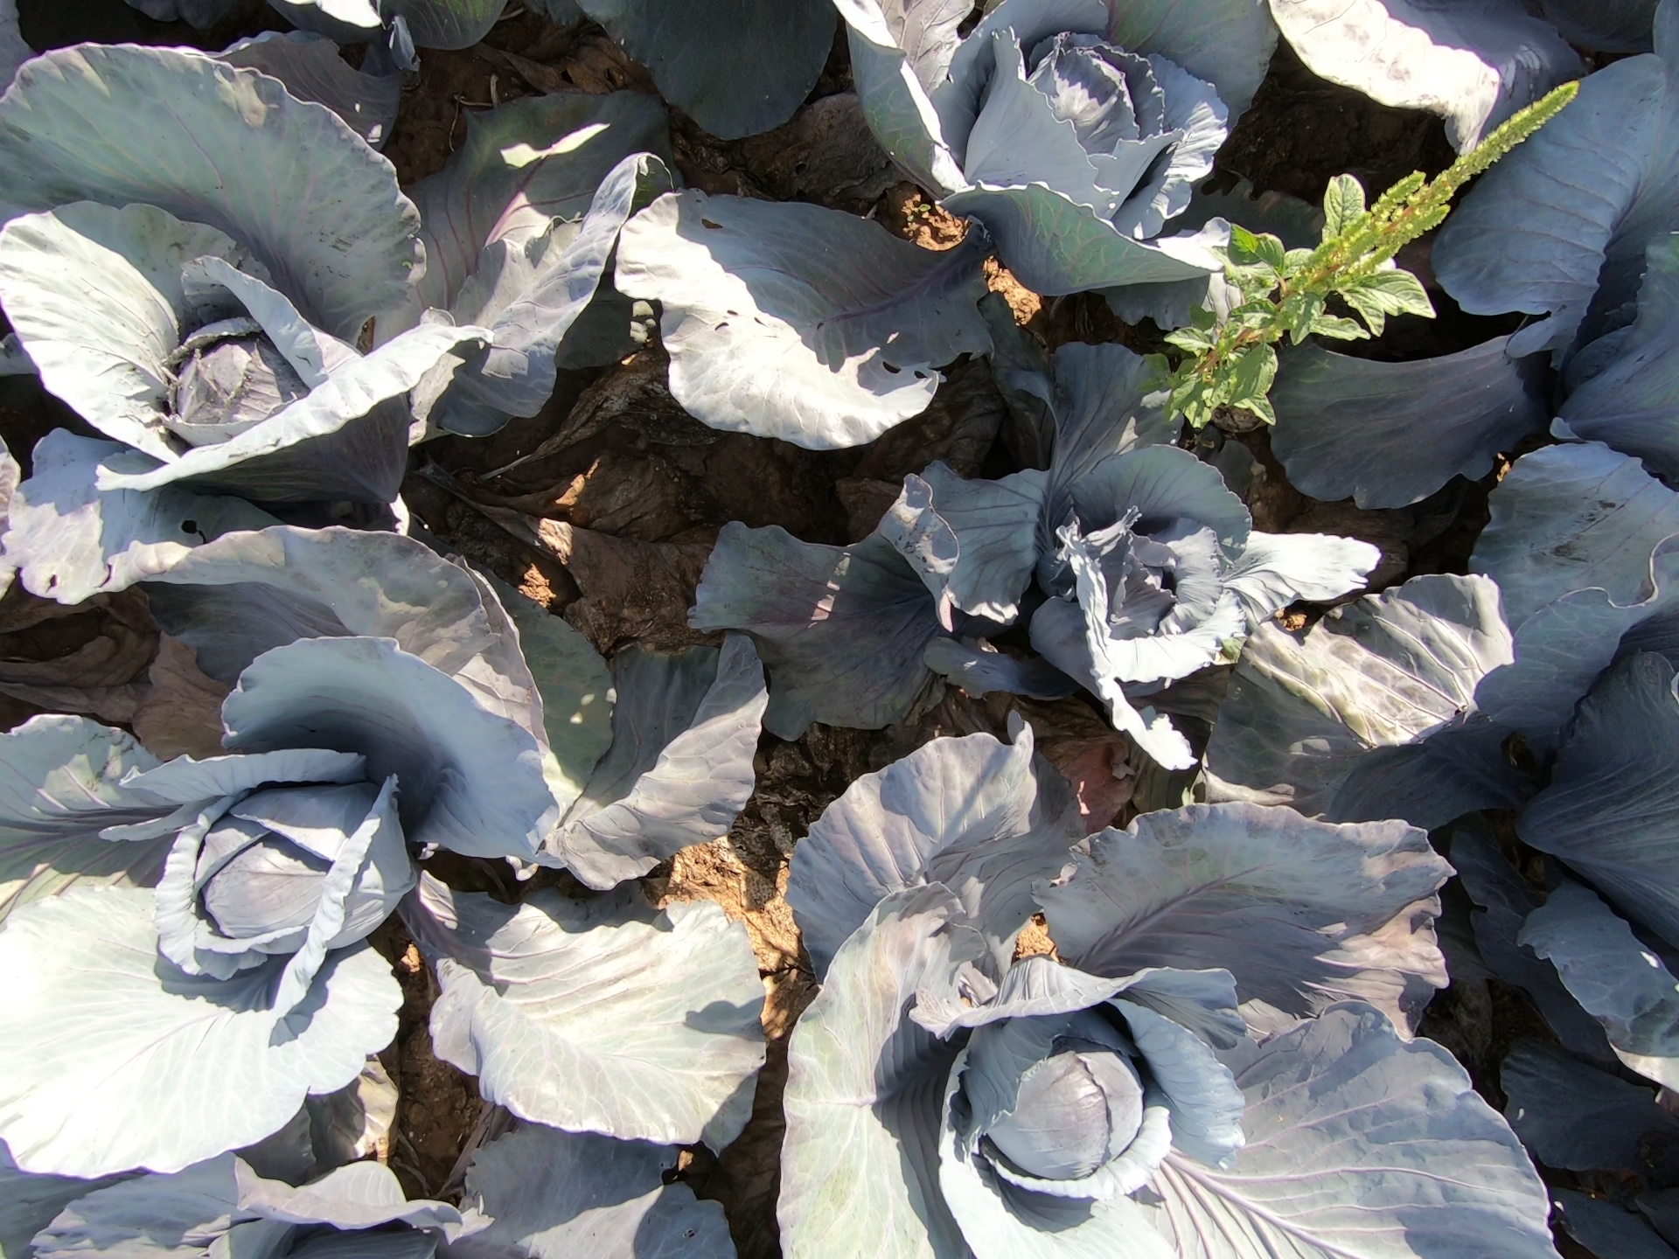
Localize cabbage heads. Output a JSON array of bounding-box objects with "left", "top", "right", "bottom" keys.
[
  {"left": 968, "top": 1000, "right": 1145, "bottom": 1185},
  {"left": 1009, "top": 54, "right": 1140, "bottom": 208},
  {"left": 170, "top": 323, "right": 356, "bottom": 484},
  {"left": 194, "top": 792, "right": 401, "bottom": 943},
  {"left": 1064, "top": 546, "right": 1163, "bottom": 652}
]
